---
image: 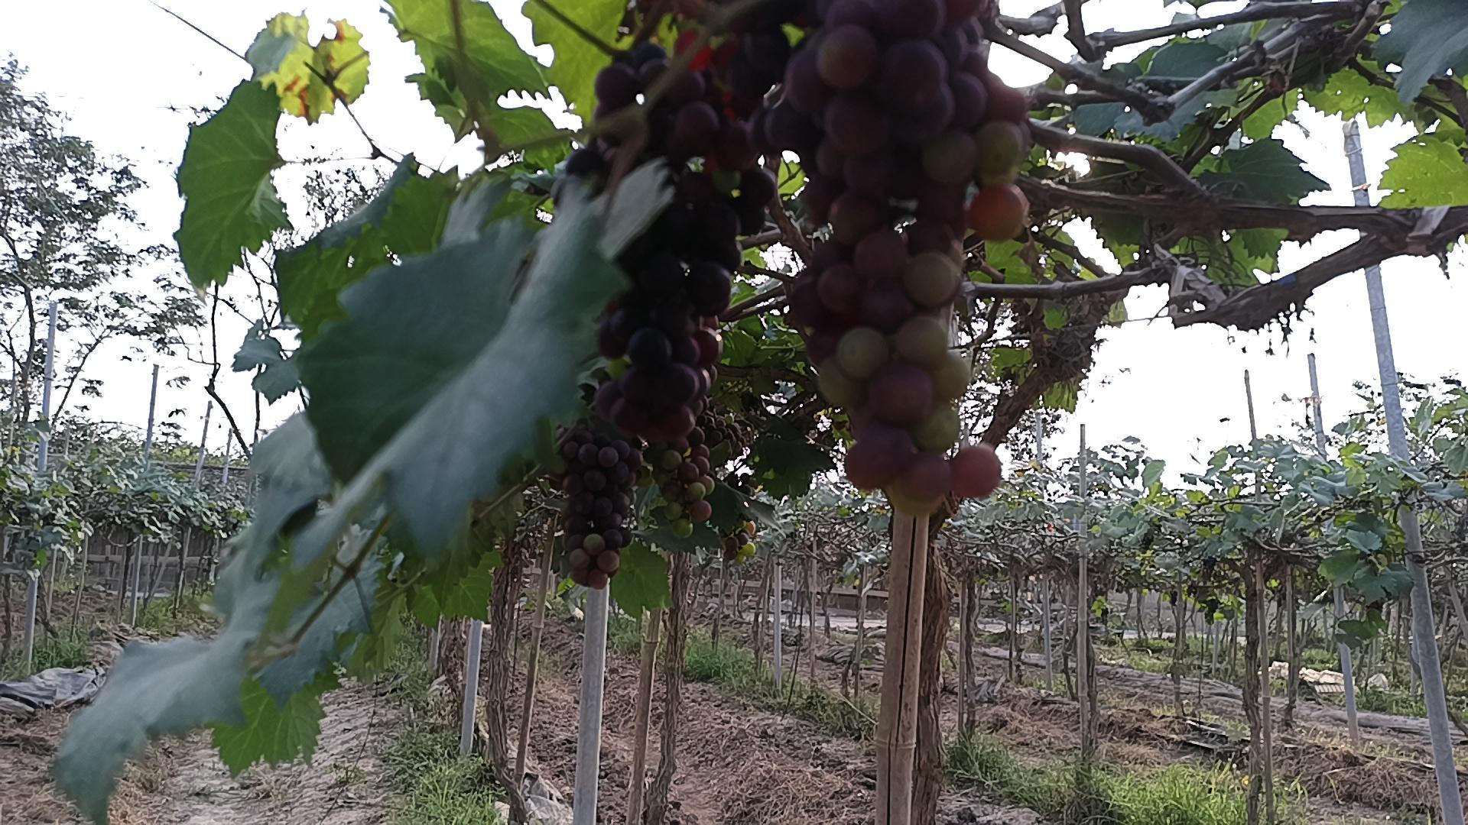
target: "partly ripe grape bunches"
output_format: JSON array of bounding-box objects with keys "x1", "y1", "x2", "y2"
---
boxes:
[
  {"x1": 700, "y1": 407, "x2": 750, "y2": 459},
  {"x1": 645, "y1": 416, "x2": 716, "y2": 538},
  {"x1": 768, "y1": 0, "x2": 1028, "y2": 515},
  {"x1": 549, "y1": 425, "x2": 652, "y2": 588},
  {"x1": 569, "y1": 0, "x2": 817, "y2": 440},
  {"x1": 719, "y1": 473, "x2": 758, "y2": 561}
]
